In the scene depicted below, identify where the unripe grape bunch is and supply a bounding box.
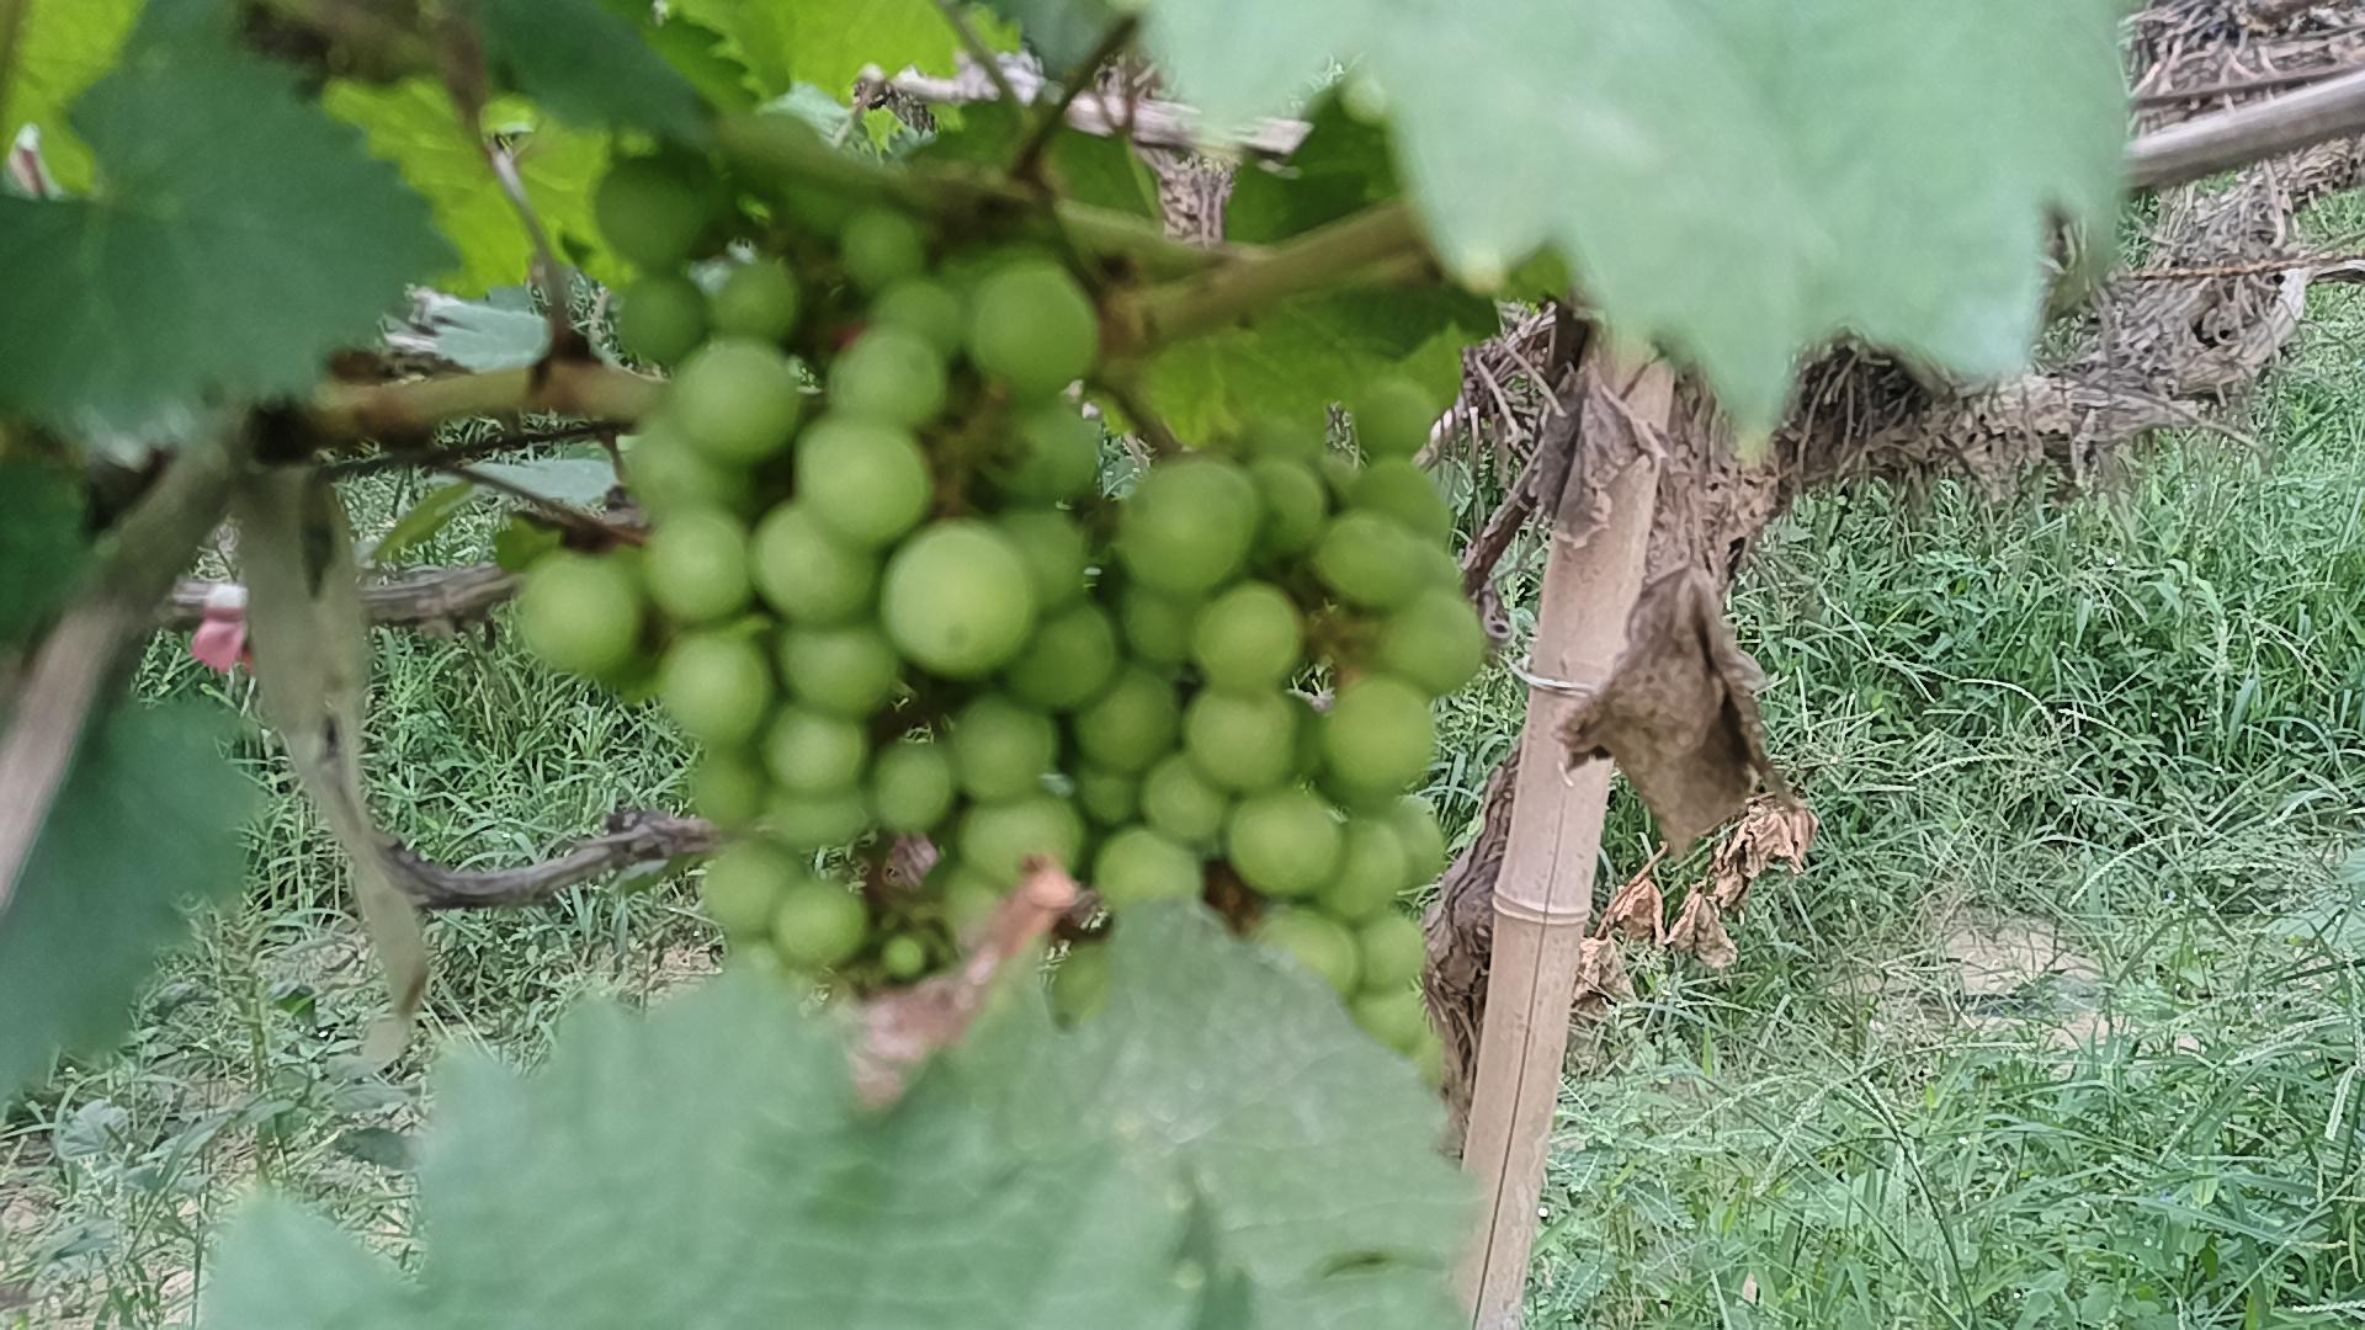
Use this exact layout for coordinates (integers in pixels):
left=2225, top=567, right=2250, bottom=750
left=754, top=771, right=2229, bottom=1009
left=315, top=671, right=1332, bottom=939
left=520, top=115, right=1483, bottom=1080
